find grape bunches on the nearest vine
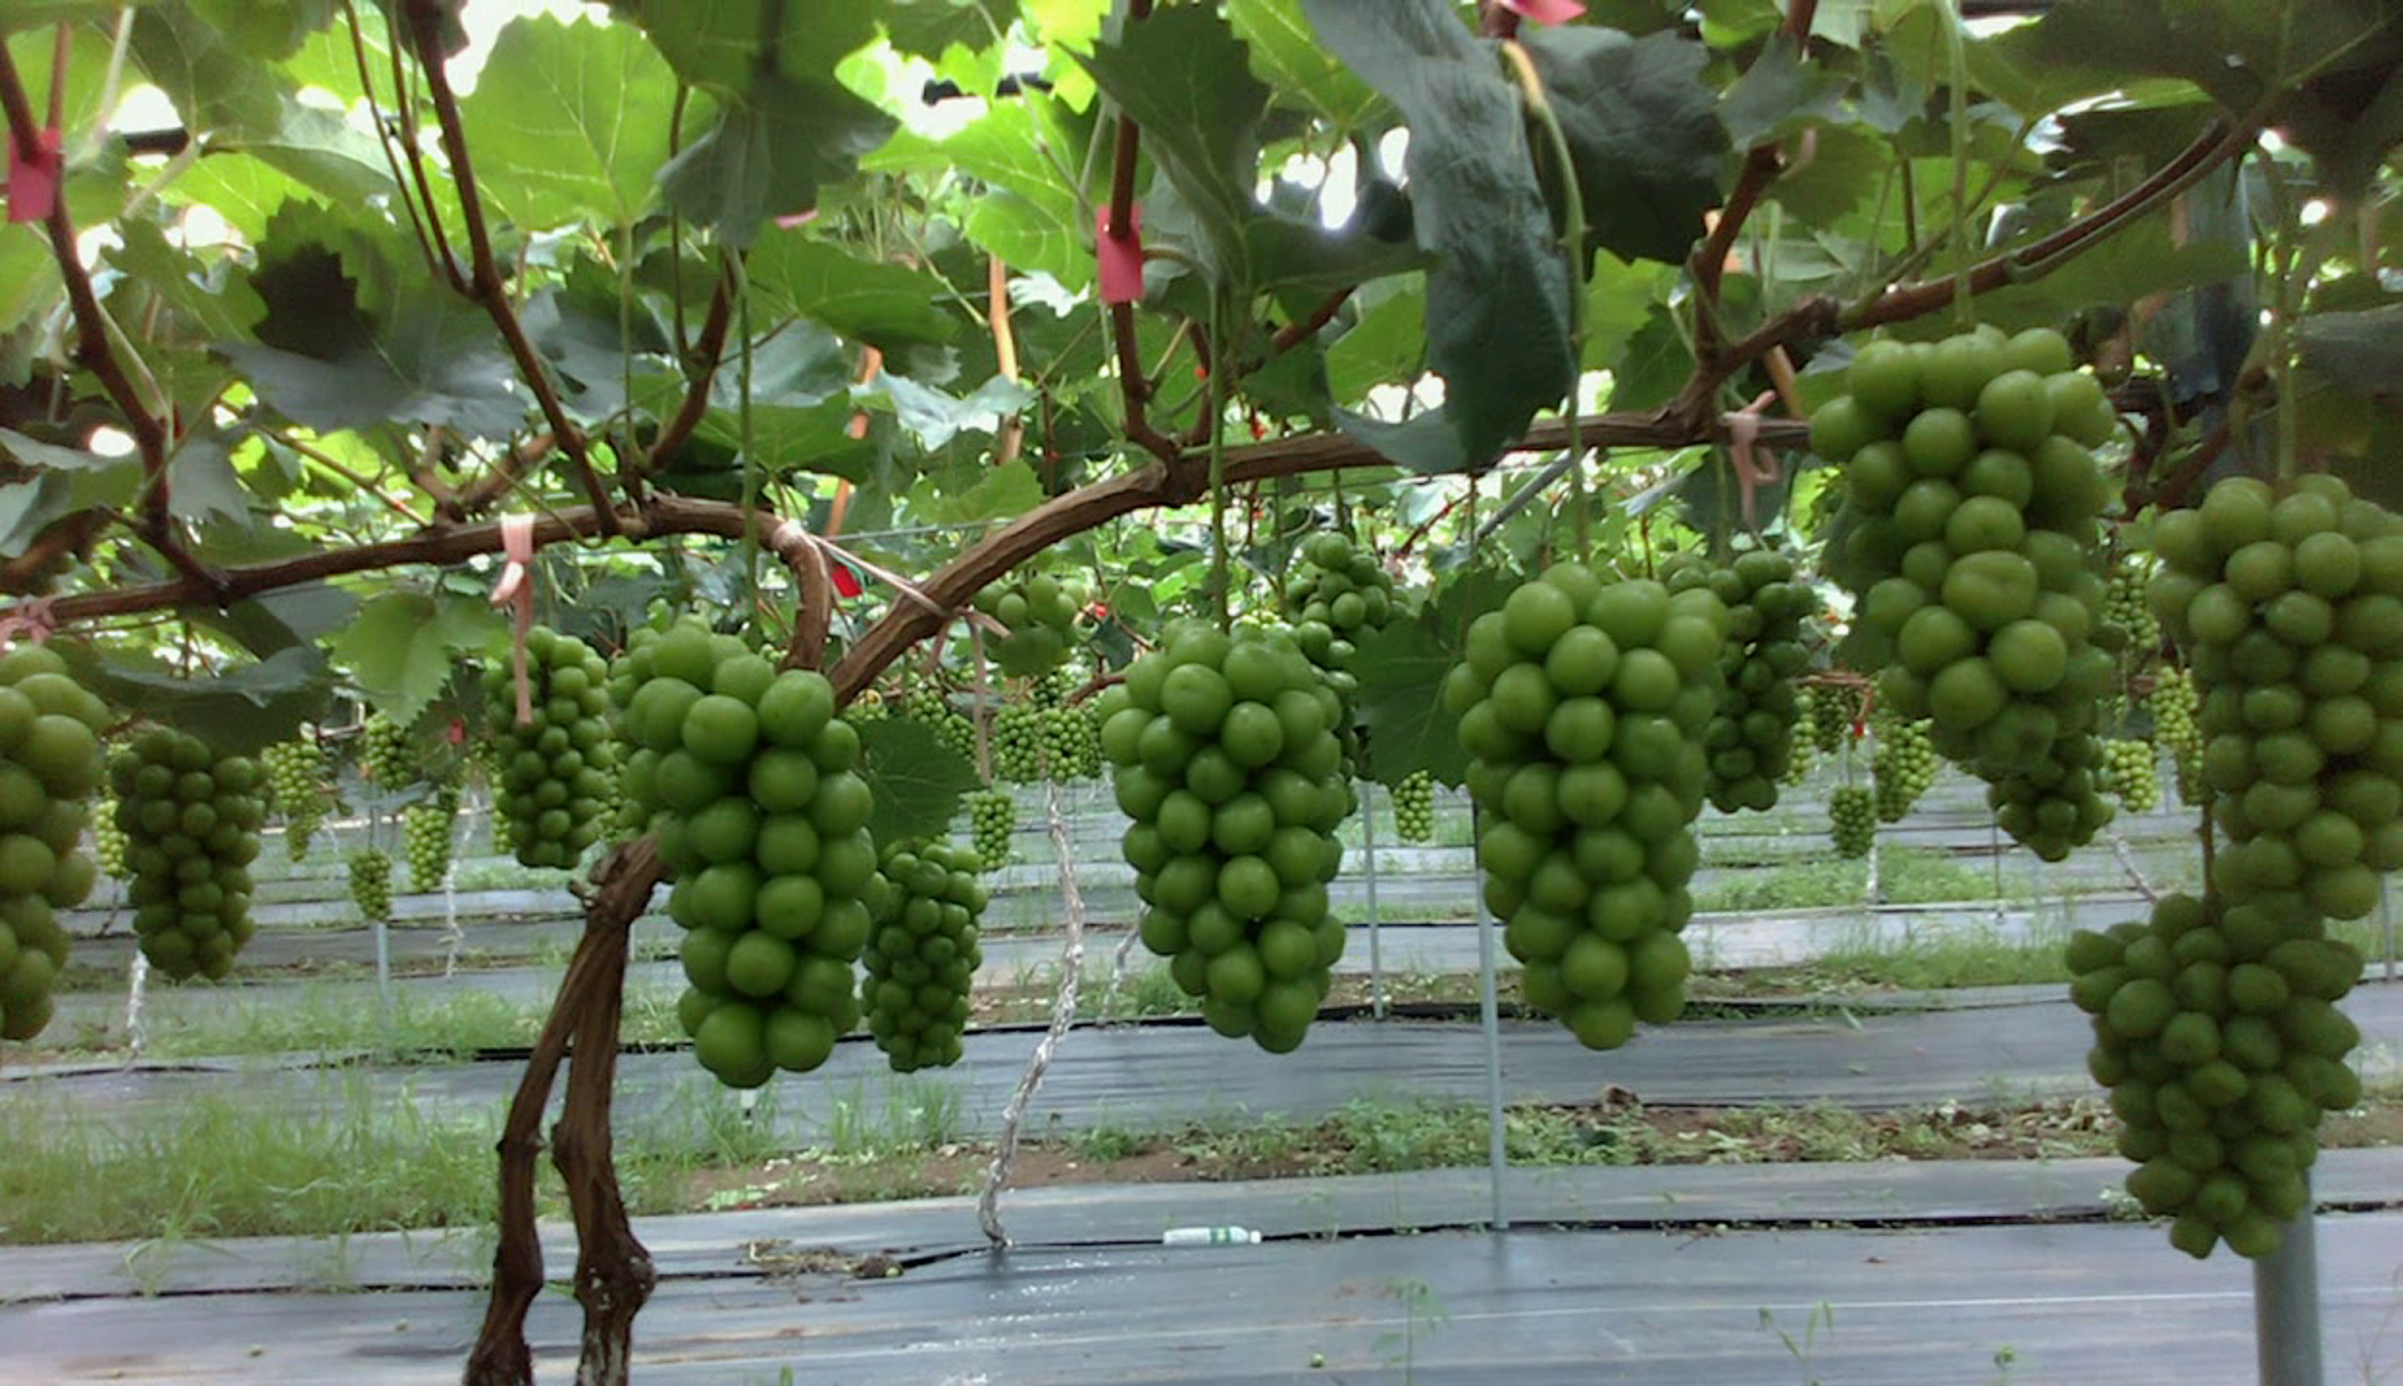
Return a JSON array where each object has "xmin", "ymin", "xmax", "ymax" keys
[
  {"xmin": 2, "ymin": 651, "xmax": 106, "ymax": 1038},
  {"xmin": 2143, "ymin": 472, "xmax": 2401, "ymax": 932},
  {"xmin": 1442, "ymin": 562, "xmax": 1729, "ymax": 1053},
  {"xmin": 624, "ymin": 614, "xmax": 890, "ymax": 1088},
  {"xmin": 1806, "ymin": 323, "xmax": 2128, "ymax": 772},
  {"xmin": 2062, "ymin": 891, "xmax": 2366, "ymax": 1259},
  {"xmin": 1098, "ymin": 616, "xmax": 1348, "ymax": 1055}
]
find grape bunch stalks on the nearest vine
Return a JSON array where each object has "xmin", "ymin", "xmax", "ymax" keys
[
  {"xmin": 1142, "ymin": 243, "xmax": 1230, "ymax": 635},
  {"xmin": 2197, "ymin": 803, "xmax": 2220, "ymax": 901},
  {"xmin": 2249, "ymin": 142, "xmax": 2297, "ymax": 499},
  {"xmin": 1504, "ymin": 38, "xmax": 1596, "ymax": 562},
  {"xmin": 722, "ymin": 248, "xmax": 764, "ymax": 653},
  {"xmin": 1931, "ymin": 0, "xmax": 1976, "ymax": 335}
]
